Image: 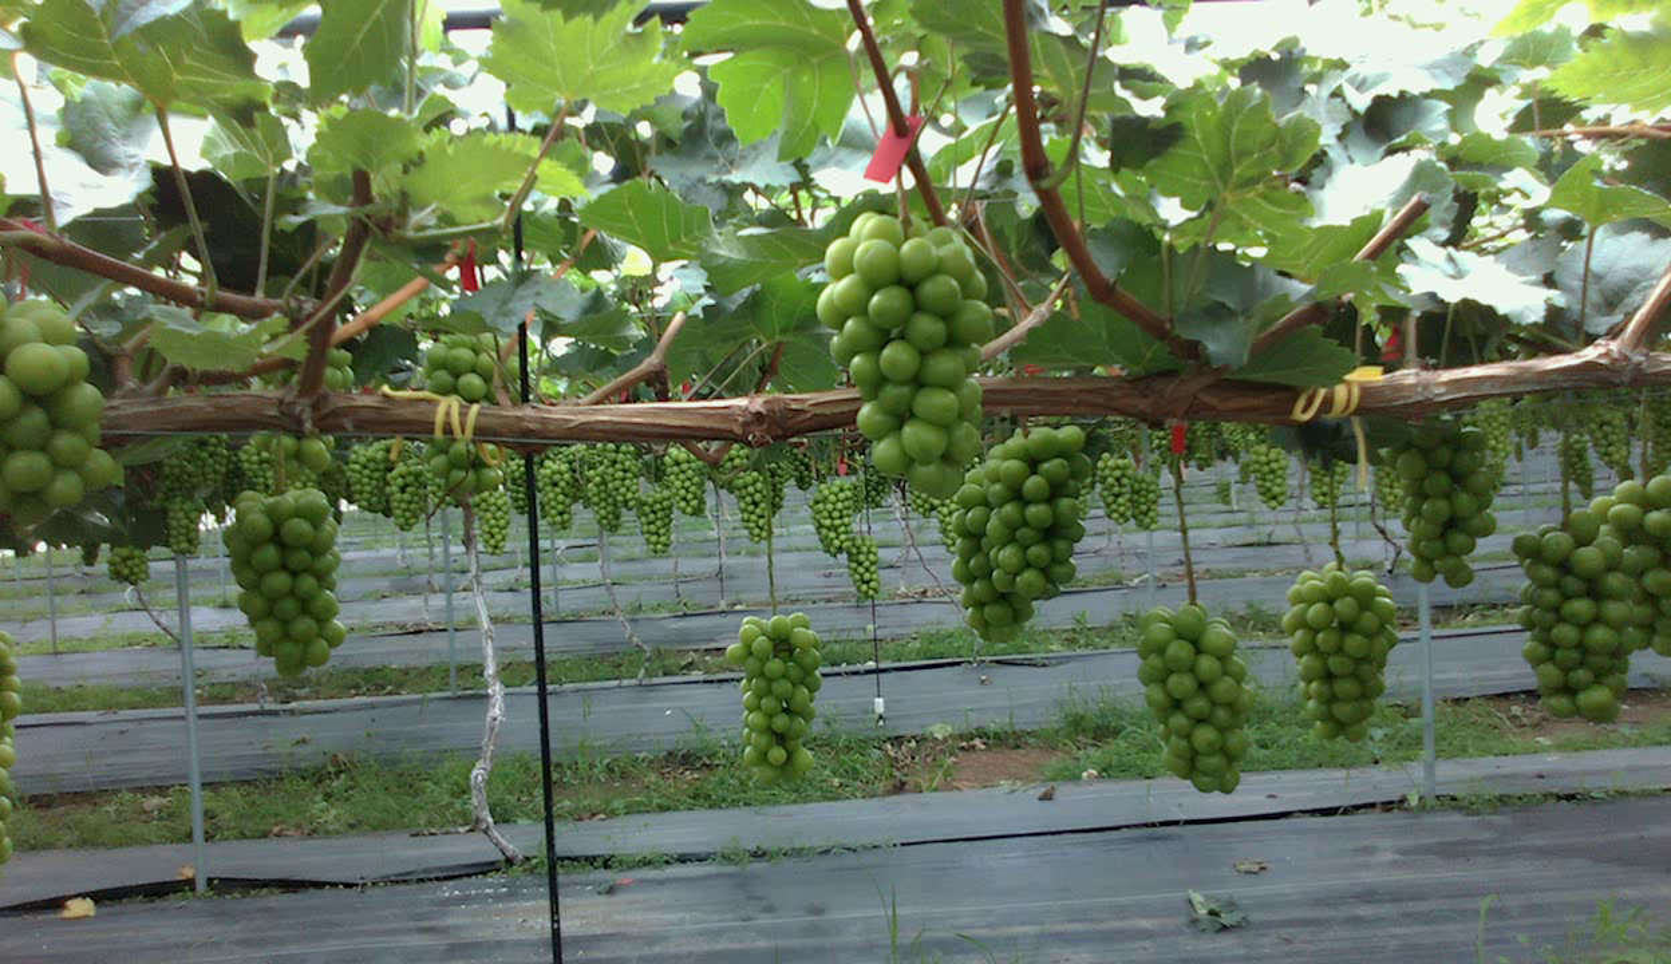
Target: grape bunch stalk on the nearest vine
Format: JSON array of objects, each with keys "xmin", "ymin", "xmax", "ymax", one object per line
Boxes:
[{"xmin": 897, "ymin": 170, "xmax": 912, "ymax": 237}]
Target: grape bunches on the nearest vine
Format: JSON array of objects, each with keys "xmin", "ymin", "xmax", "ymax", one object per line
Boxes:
[
  {"xmin": 1, "ymin": 295, "xmax": 115, "ymax": 529},
  {"xmin": 817, "ymin": 213, "xmax": 993, "ymax": 501}
]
